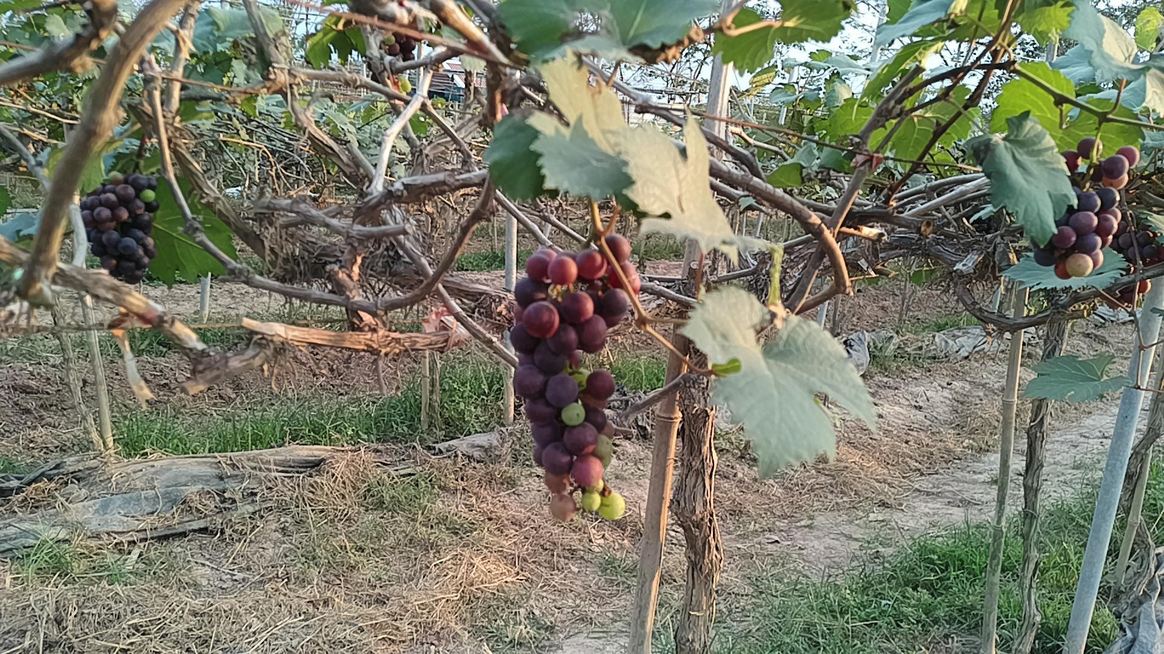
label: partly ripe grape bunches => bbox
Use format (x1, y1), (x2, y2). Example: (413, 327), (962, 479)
(367, 31), (421, 96)
(1032, 138), (1140, 280)
(512, 233), (640, 520)
(81, 173), (159, 283)
(1100, 213), (1163, 309)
